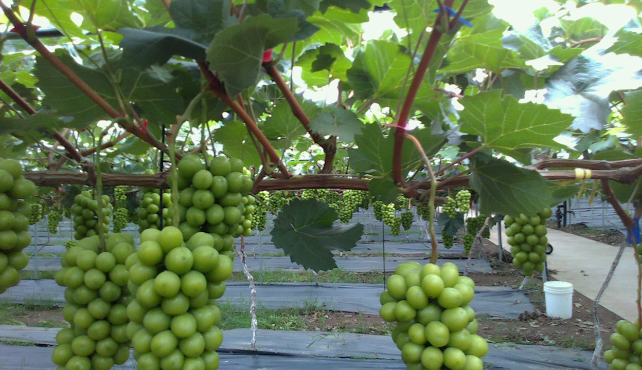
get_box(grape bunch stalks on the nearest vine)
[201,101,211,168]
[169,95,200,227]
[408,134,438,264]
[96,116,125,252]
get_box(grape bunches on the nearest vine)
[0,157,37,294]
[176,154,255,258]
[123,227,233,369]
[53,232,135,369]
[379,261,487,369]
